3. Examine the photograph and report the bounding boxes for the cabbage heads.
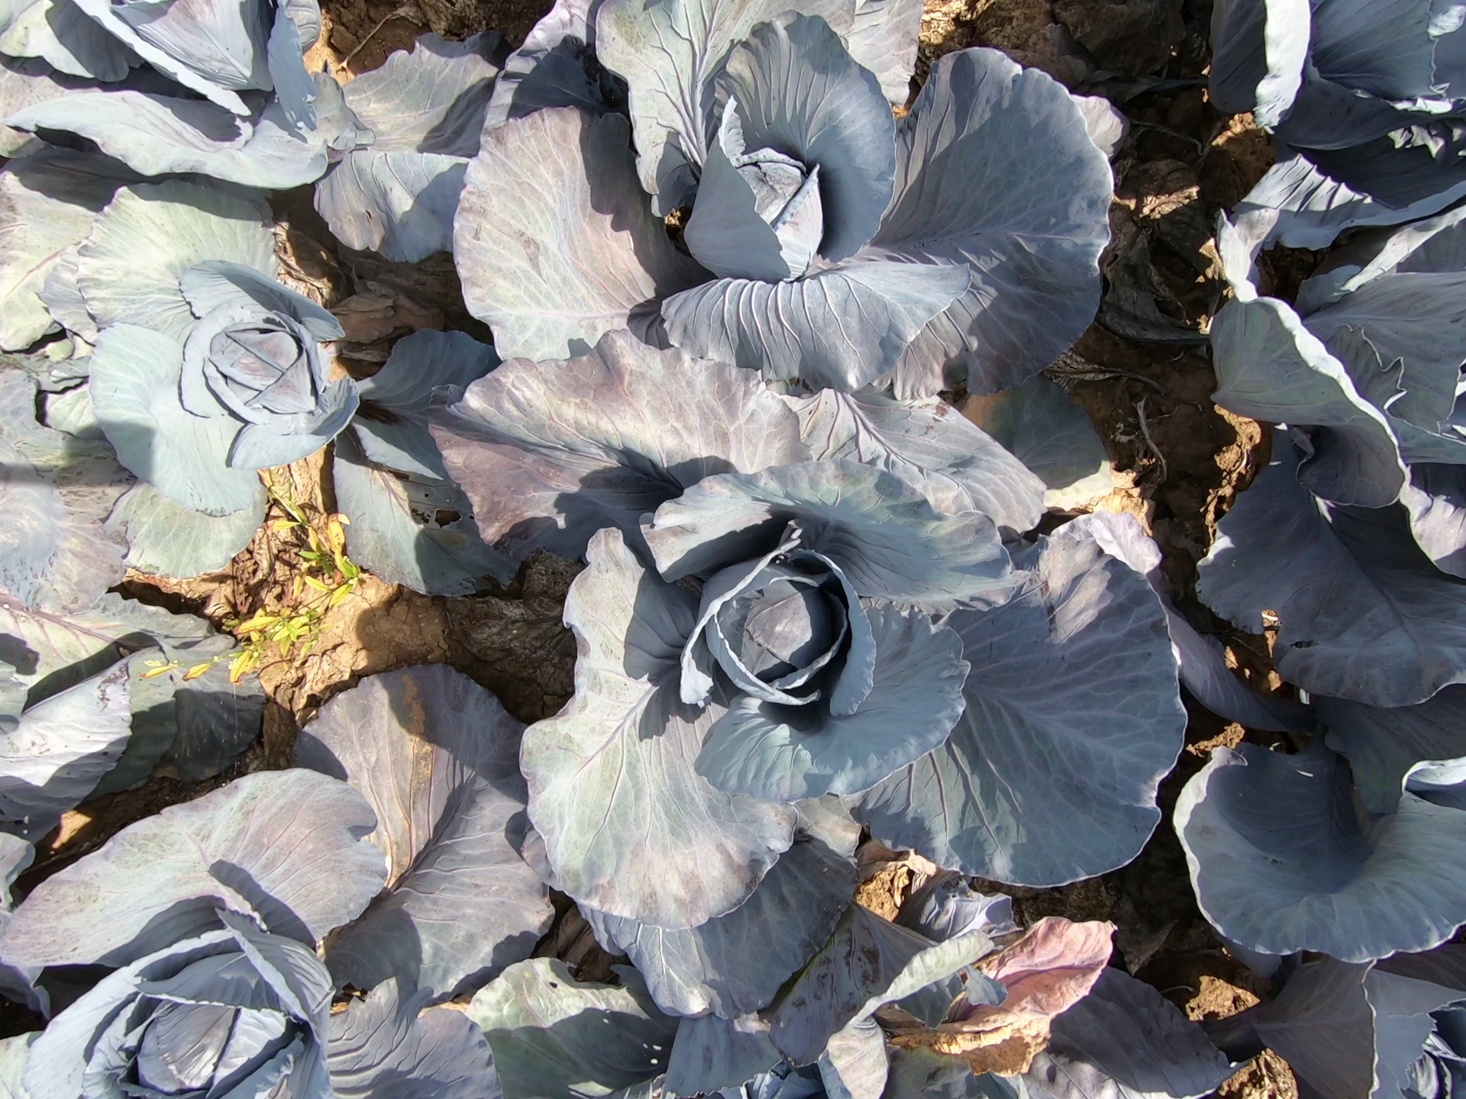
[138,949,303,1095]
[734,981,892,1097]
[703,150,825,281]
[1332,997,1451,1094]
[224,332,312,412]
[111,0,269,73]
[703,561,836,688]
